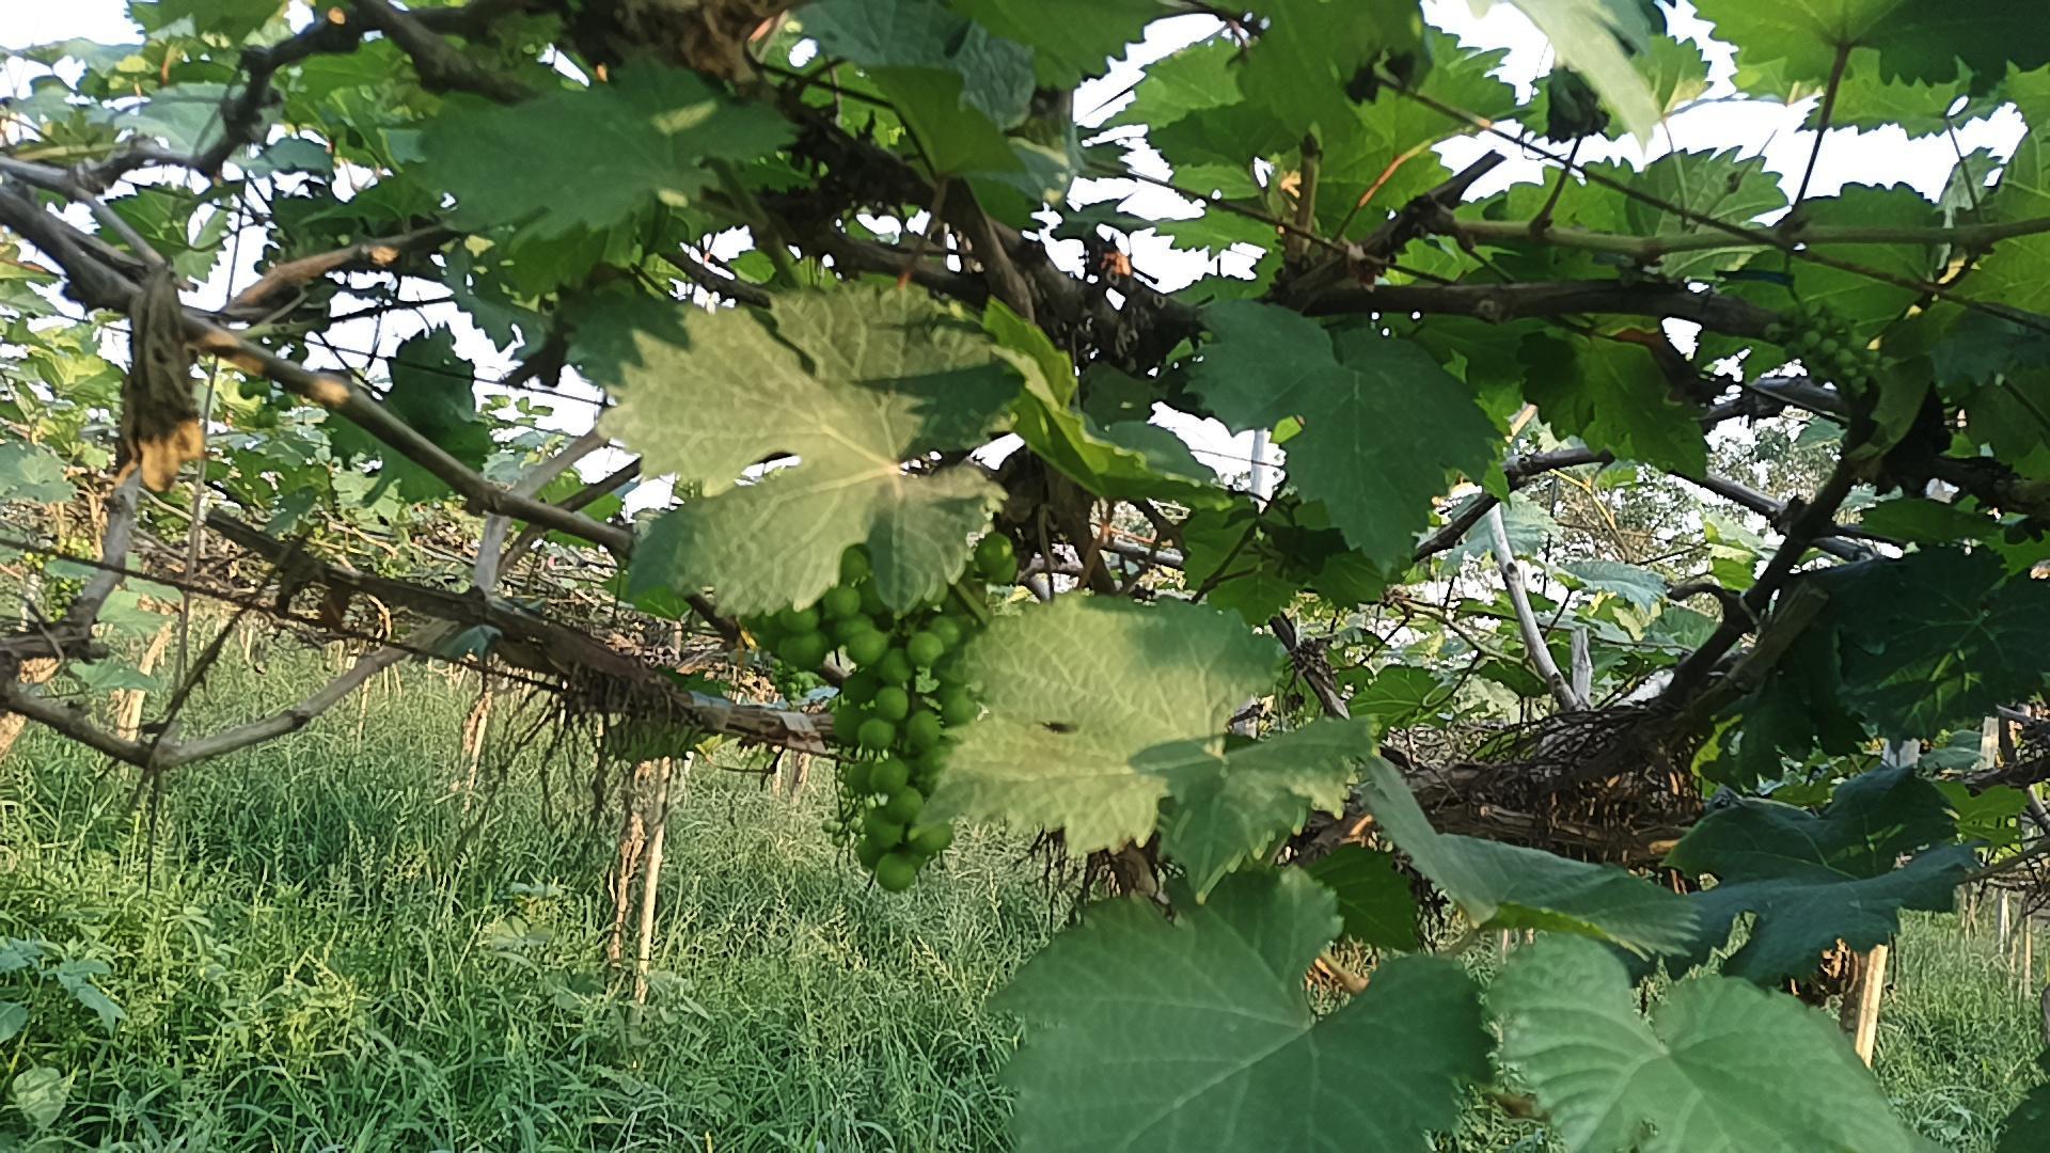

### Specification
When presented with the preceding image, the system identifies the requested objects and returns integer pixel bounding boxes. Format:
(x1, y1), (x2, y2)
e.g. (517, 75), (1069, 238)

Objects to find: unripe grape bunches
(771, 661), (820, 702)
(1768, 302), (1874, 402)
(759, 533), (1015, 891)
